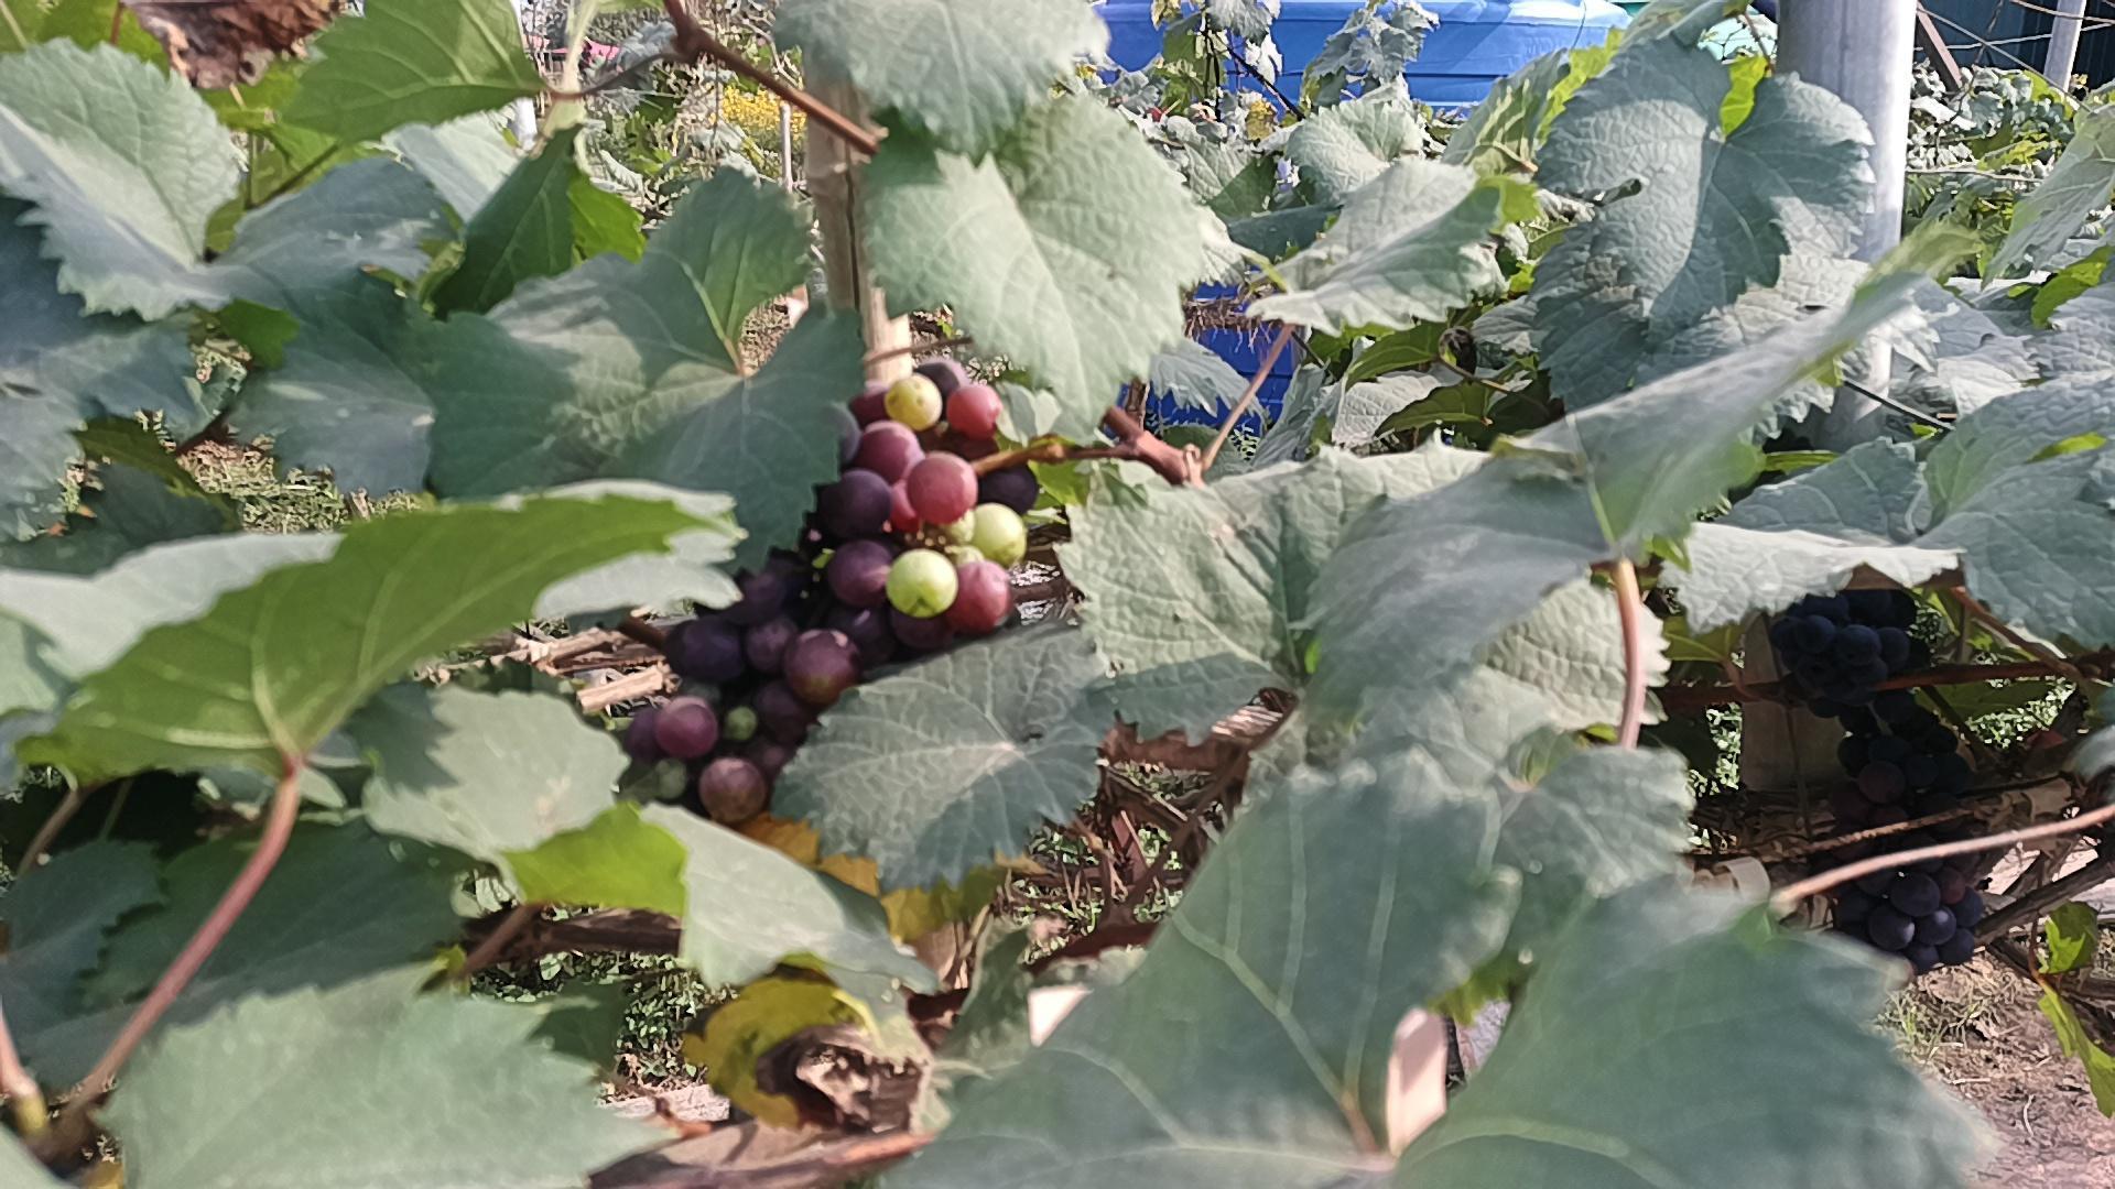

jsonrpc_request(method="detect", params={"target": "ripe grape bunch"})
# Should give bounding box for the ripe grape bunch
[1769,589,1983,975]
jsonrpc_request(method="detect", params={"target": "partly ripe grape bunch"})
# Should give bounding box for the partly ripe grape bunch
[625,358,1038,823]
